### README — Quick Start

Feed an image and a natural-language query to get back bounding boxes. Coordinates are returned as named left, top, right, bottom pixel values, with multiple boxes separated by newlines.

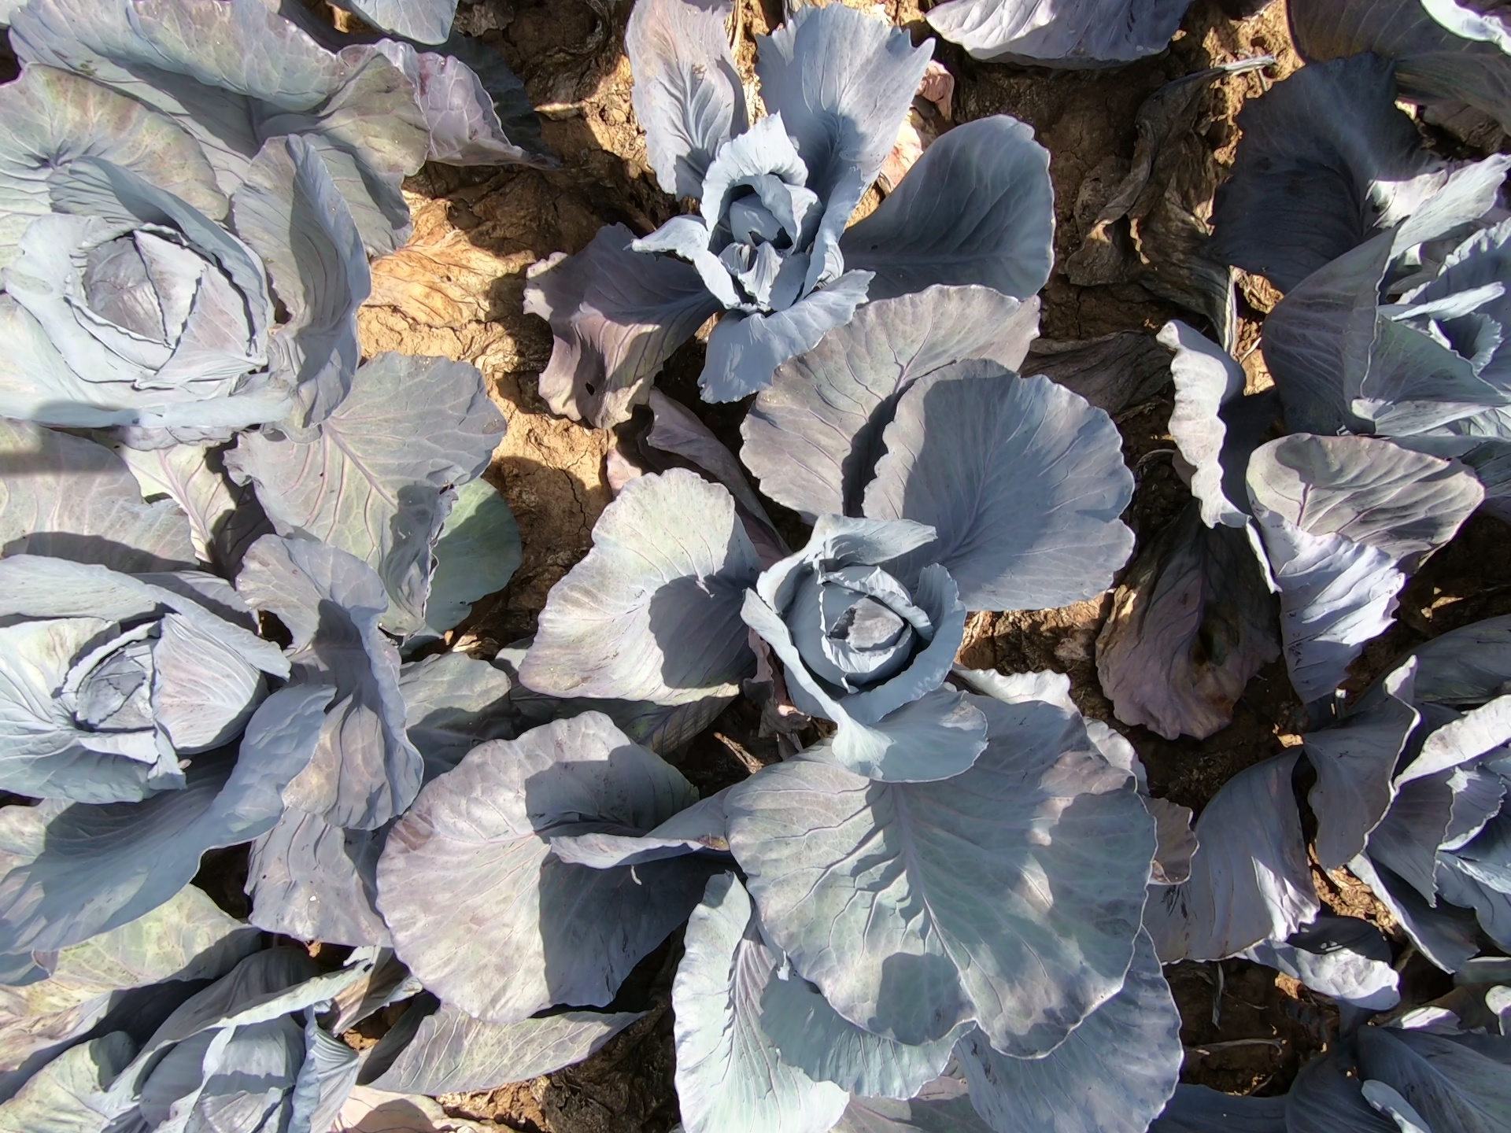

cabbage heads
left=733, top=188, right=811, bottom=253
left=801, top=566, right=915, bottom=682
left=138, top=1007, right=351, bottom=1129
left=1350, top=306, right=1454, bottom=413
left=80, top=239, right=238, bottom=376
left=1372, top=748, right=1509, bottom=856
left=79, top=635, right=254, bottom=754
